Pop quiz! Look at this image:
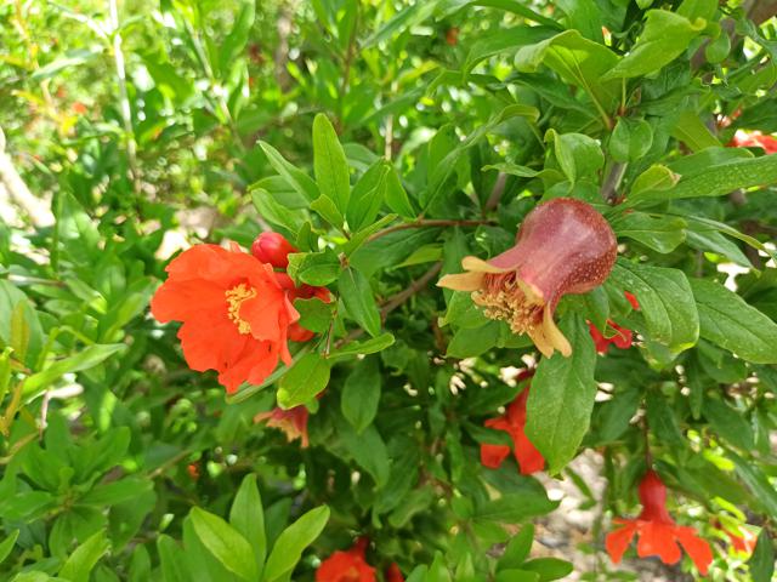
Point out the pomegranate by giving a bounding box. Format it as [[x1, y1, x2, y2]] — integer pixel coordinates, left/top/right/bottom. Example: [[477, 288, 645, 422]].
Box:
[[433, 195, 618, 359]]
